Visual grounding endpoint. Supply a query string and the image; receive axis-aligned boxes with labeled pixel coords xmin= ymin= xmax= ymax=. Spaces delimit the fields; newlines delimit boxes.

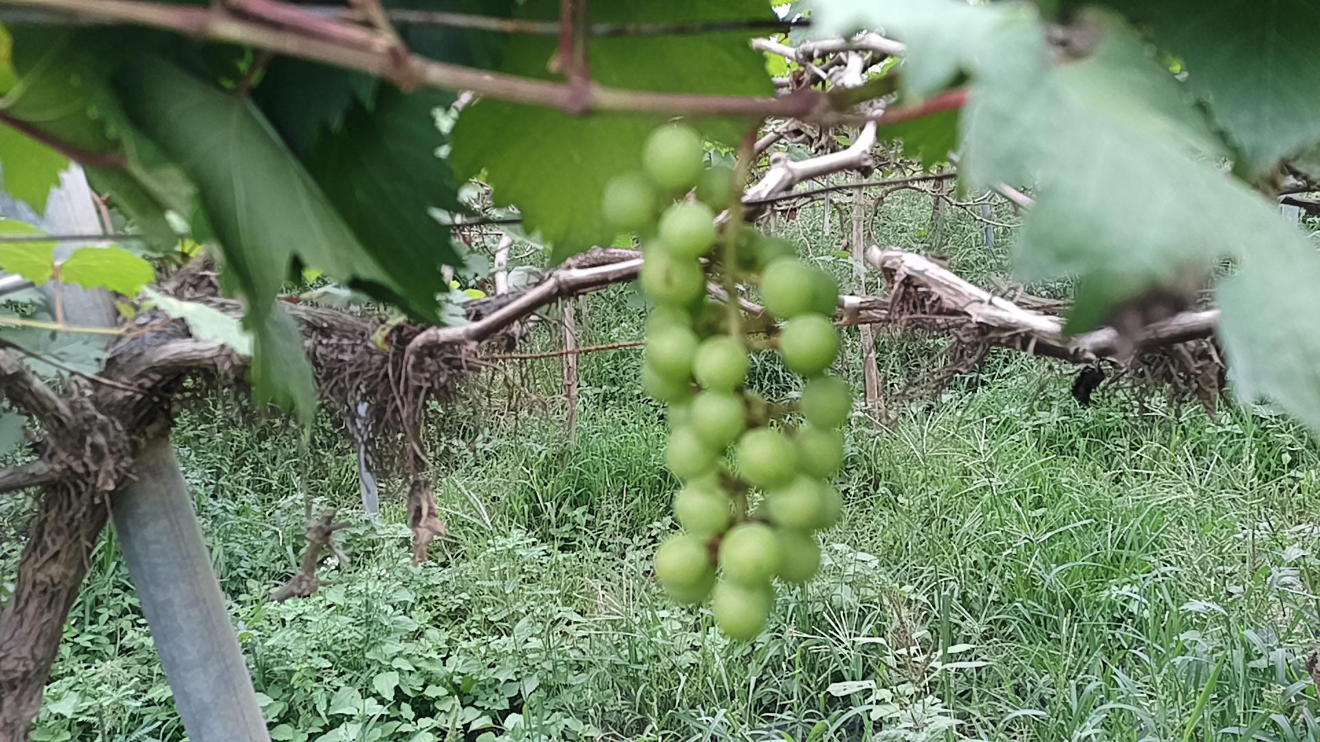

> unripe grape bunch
xmin=640 ymin=125 xmax=851 ymax=640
